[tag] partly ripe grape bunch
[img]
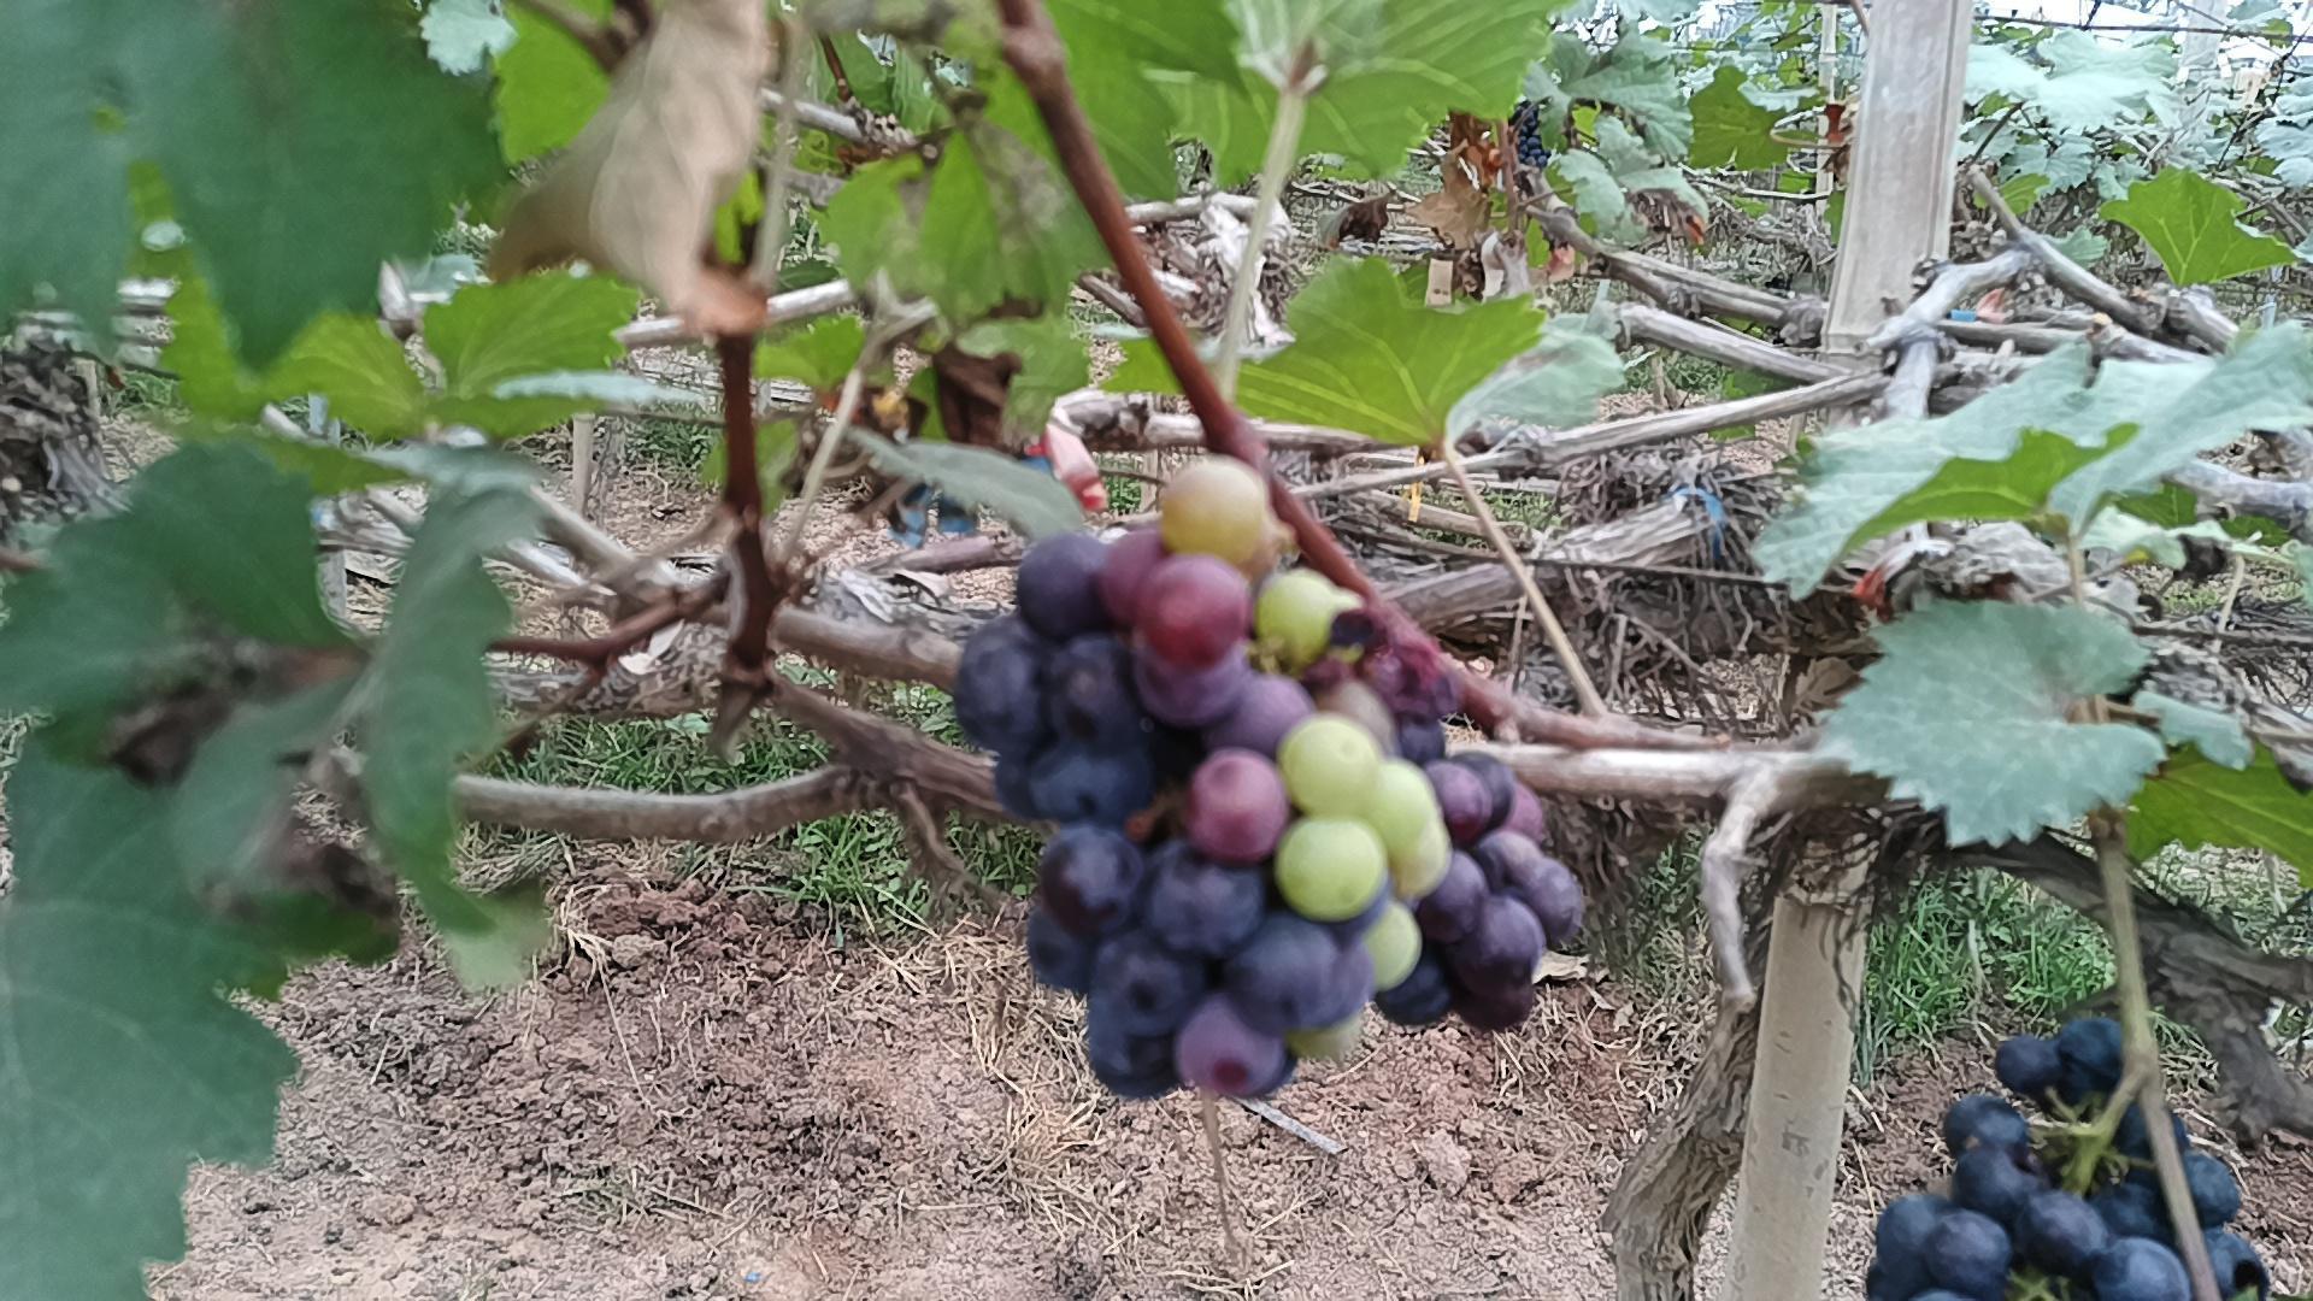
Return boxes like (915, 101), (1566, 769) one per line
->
(953, 459), (1582, 1096)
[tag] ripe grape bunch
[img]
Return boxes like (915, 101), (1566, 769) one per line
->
(1864, 1018), (2271, 1300)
